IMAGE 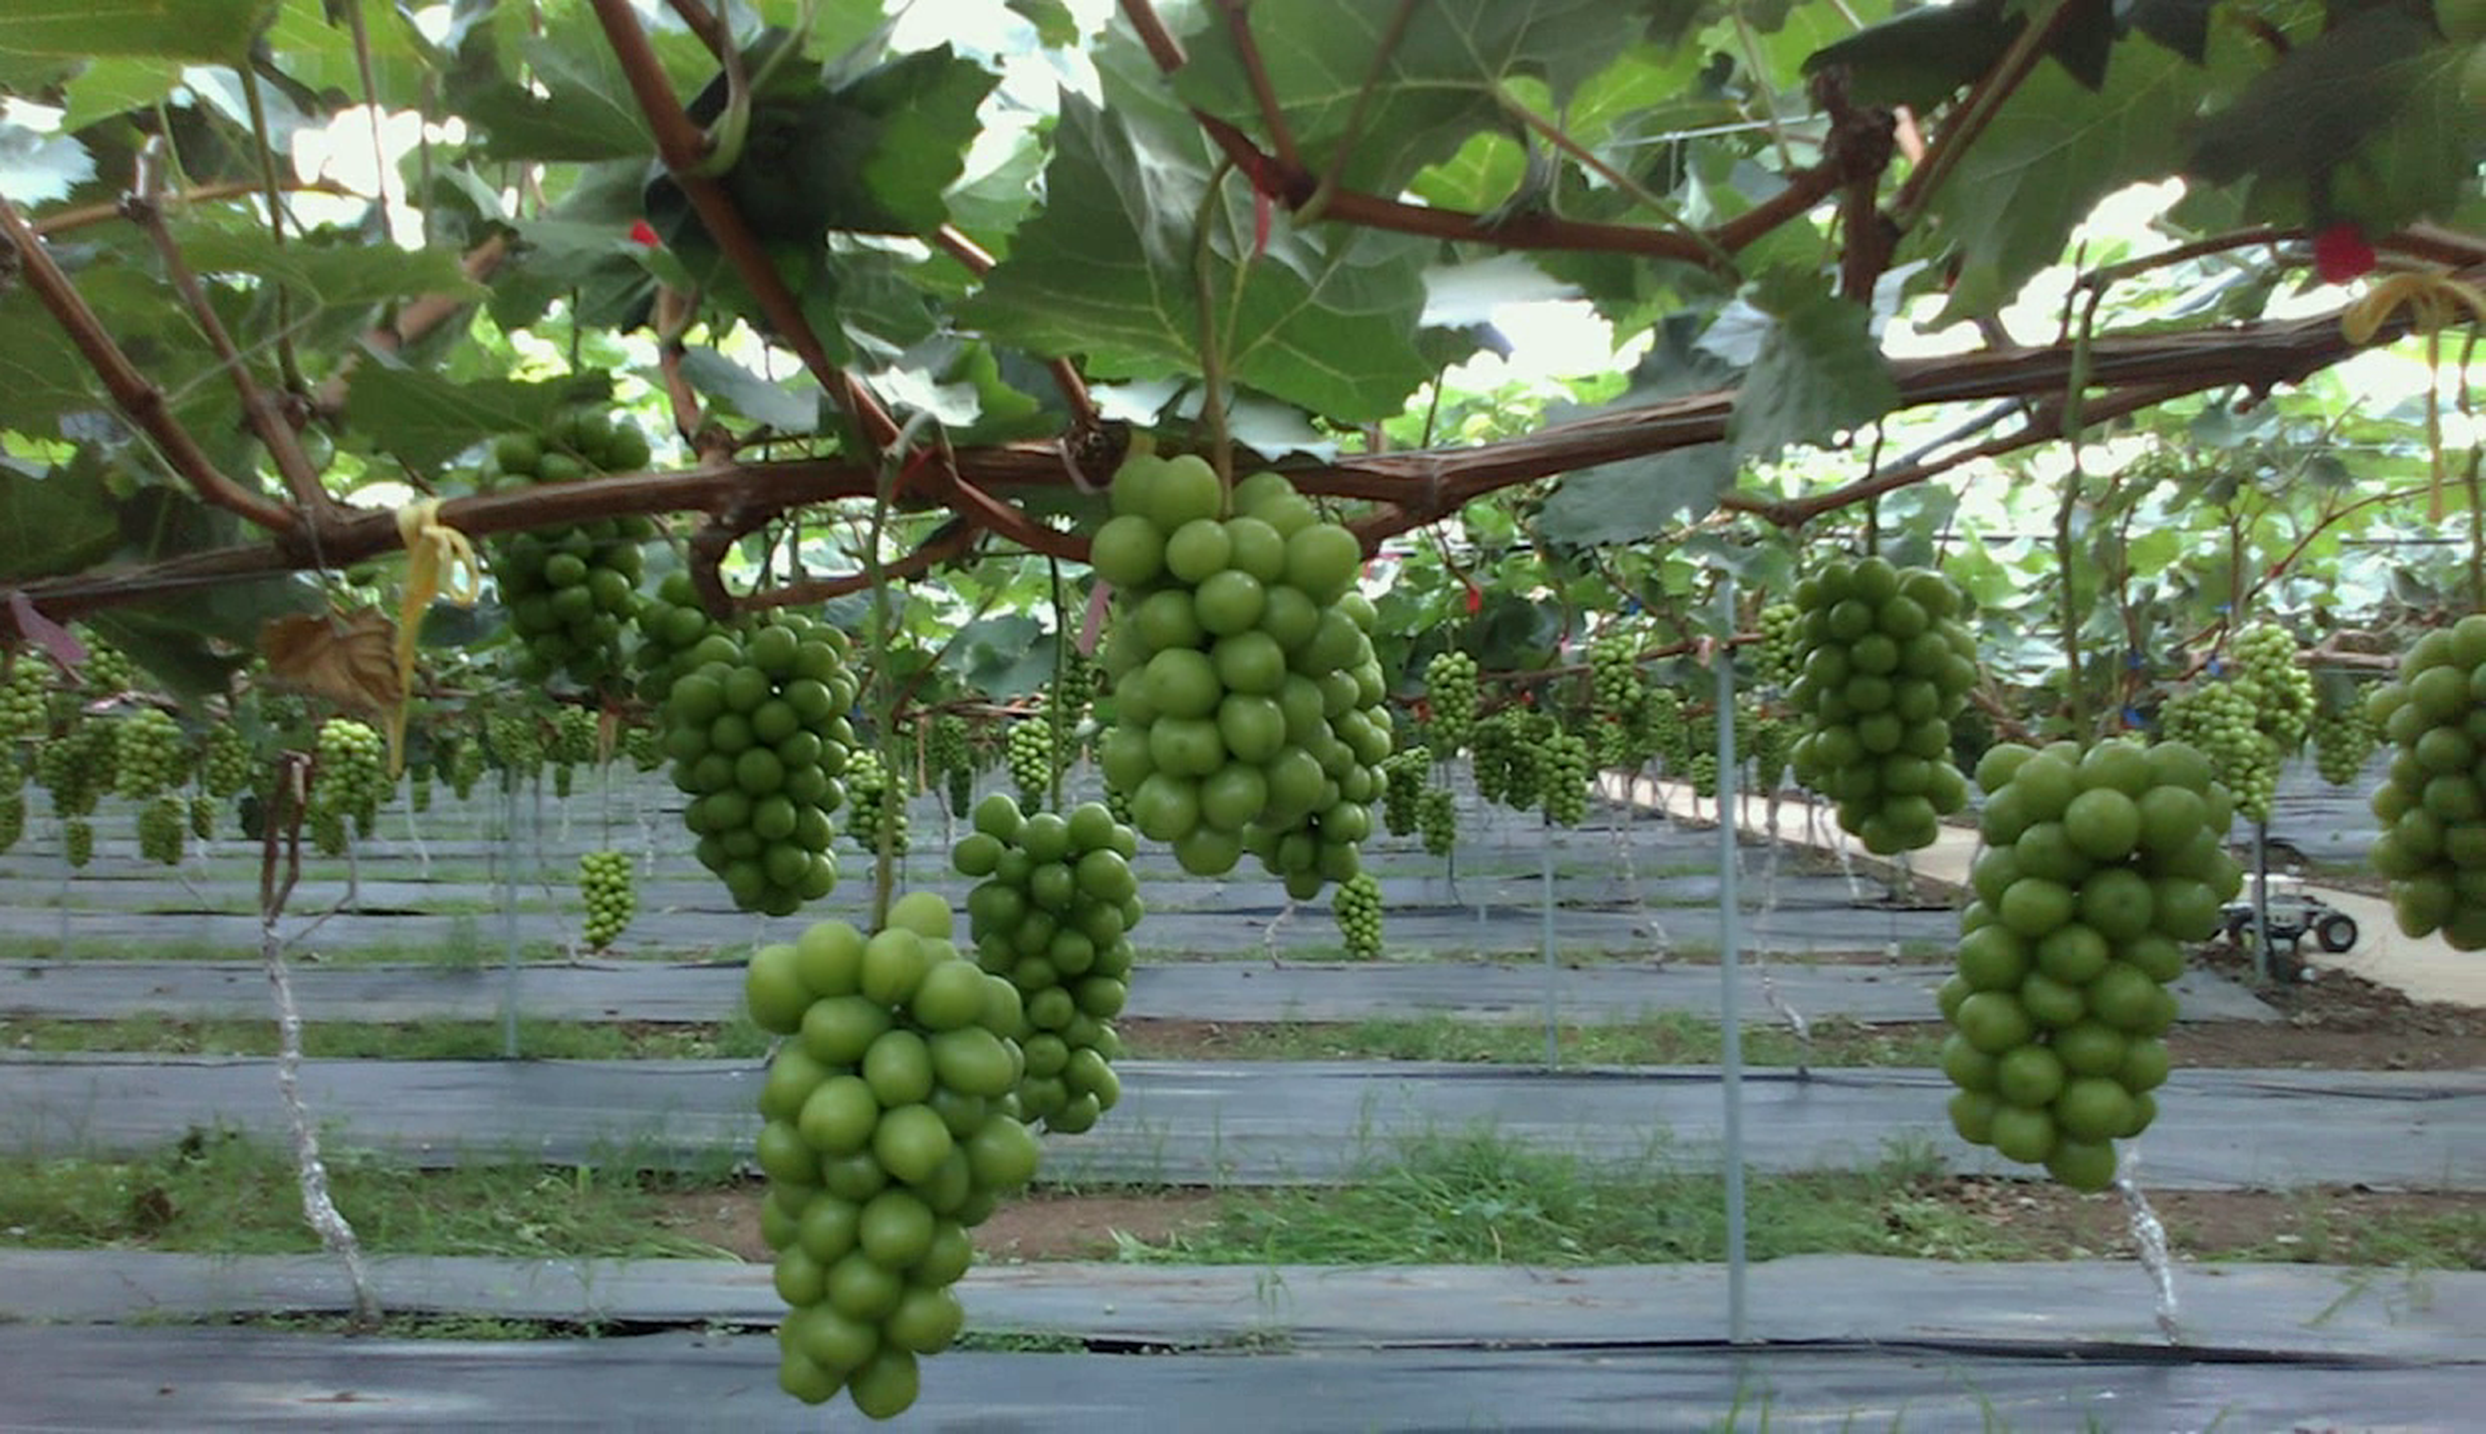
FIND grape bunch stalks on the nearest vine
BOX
[1191,159,1235,520]
[865,412,954,934]
[2056,285,2106,759]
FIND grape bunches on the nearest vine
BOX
[1088,452,1378,876]
[1934,741,2243,1193]
[2366,613,2484,954]
[743,890,1038,1420]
